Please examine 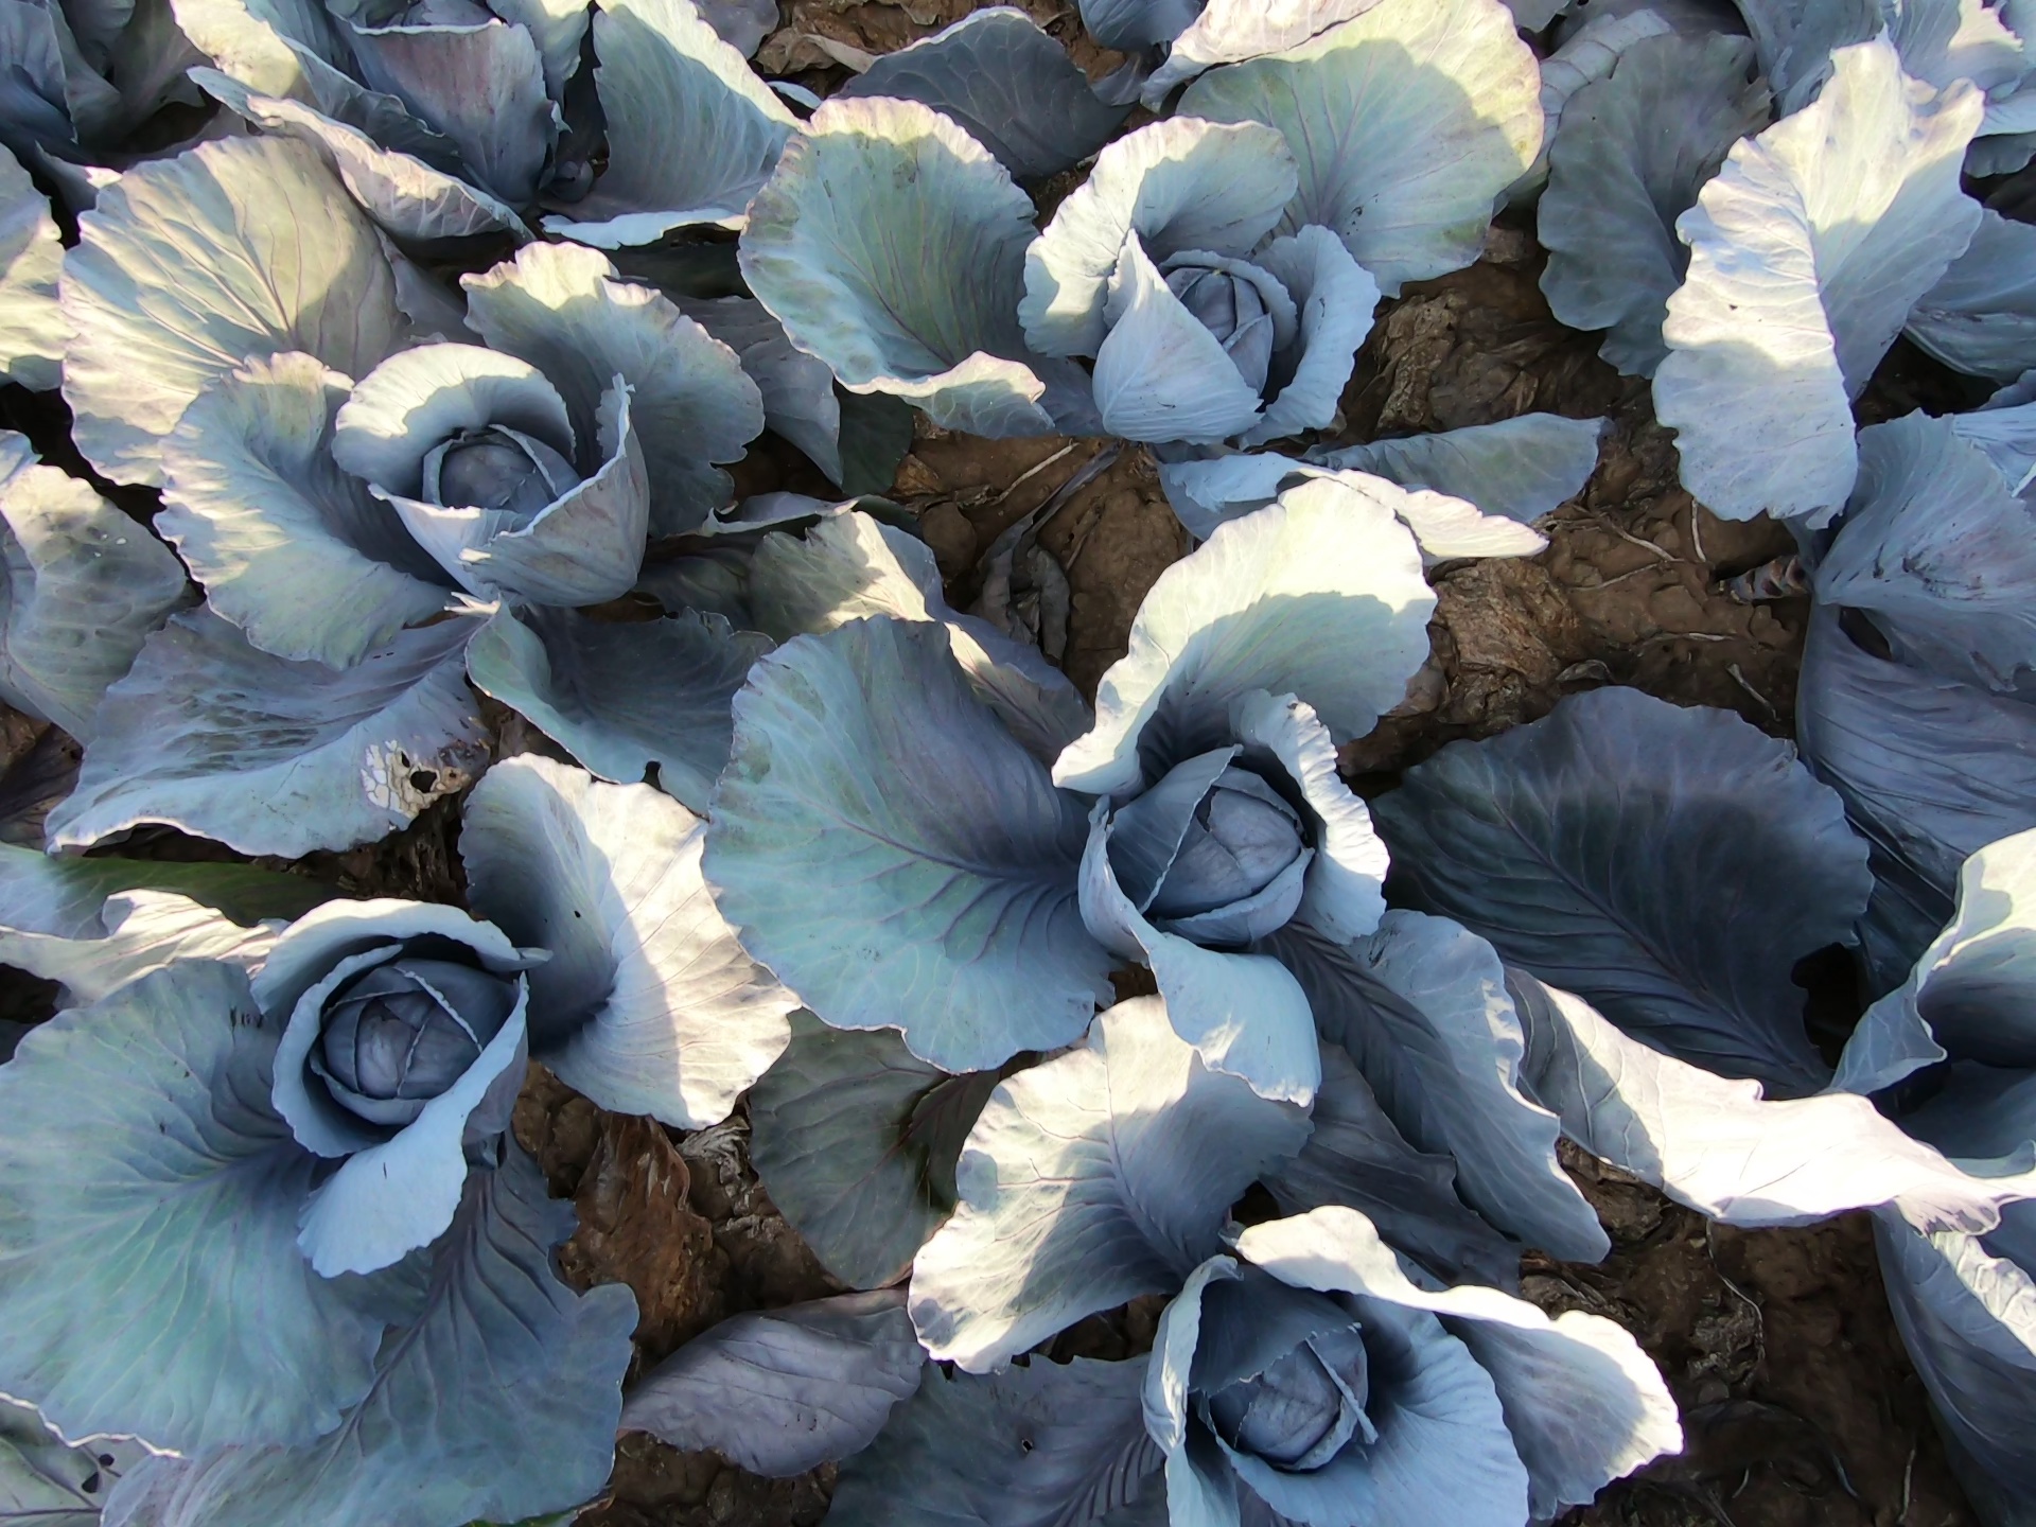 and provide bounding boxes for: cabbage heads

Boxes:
[1215,1299,1366,1462]
[422,431,559,547]
[322,962,512,1116]
[379,0,503,111]
[1155,771,1302,943]
[1148,262,1270,411]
